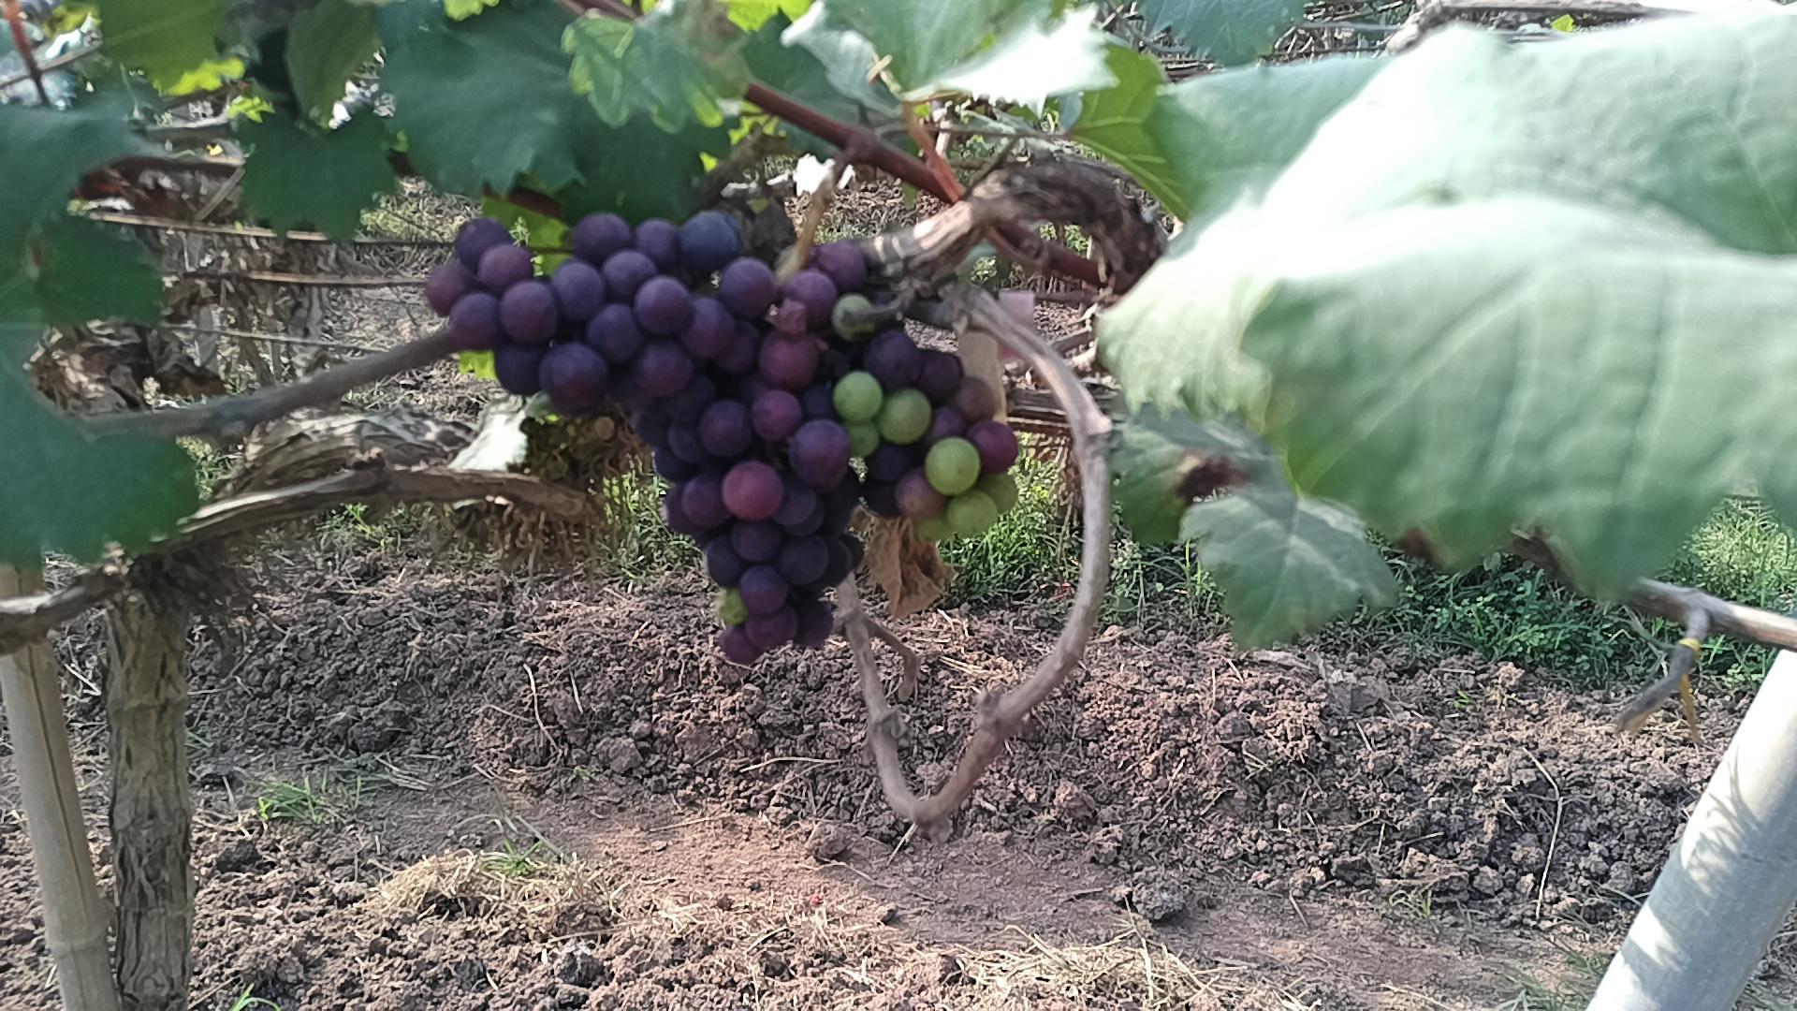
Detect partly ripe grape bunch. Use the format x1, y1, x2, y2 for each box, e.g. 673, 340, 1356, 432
426, 210, 1018, 663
